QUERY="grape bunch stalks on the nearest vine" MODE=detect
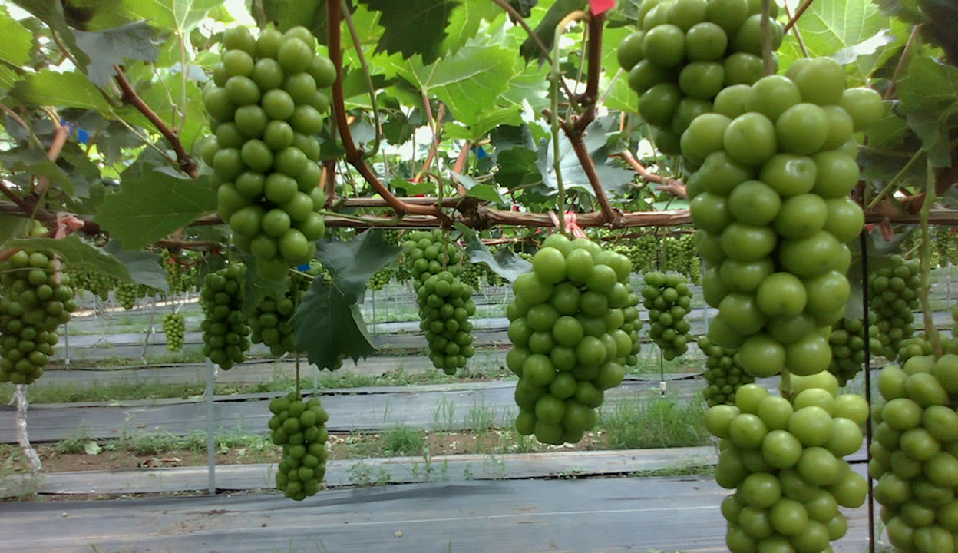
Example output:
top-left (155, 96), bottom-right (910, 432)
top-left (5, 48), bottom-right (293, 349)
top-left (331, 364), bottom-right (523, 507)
top-left (255, 1), bottom-right (266, 31)
top-left (781, 365), bottom-right (790, 401)
top-left (551, 10), bottom-right (590, 237)
top-left (758, 1), bottom-right (774, 76)
top-left (871, 151), bottom-right (943, 363)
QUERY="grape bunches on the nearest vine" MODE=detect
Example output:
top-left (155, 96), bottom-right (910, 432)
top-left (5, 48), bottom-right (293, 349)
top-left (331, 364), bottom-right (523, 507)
top-left (682, 57), bottom-right (884, 377)
top-left (703, 371), bottom-right (871, 552)
top-left (867, 353), bottom-right (957, 552)
top-left (0, 249), bottom-right (77, 384)
top-left (199, 25), bottom-right (338, 283)
top-left (506, 233), bottom-right (633, 446)
top-left (616, 0), bottom-right (765, 157)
